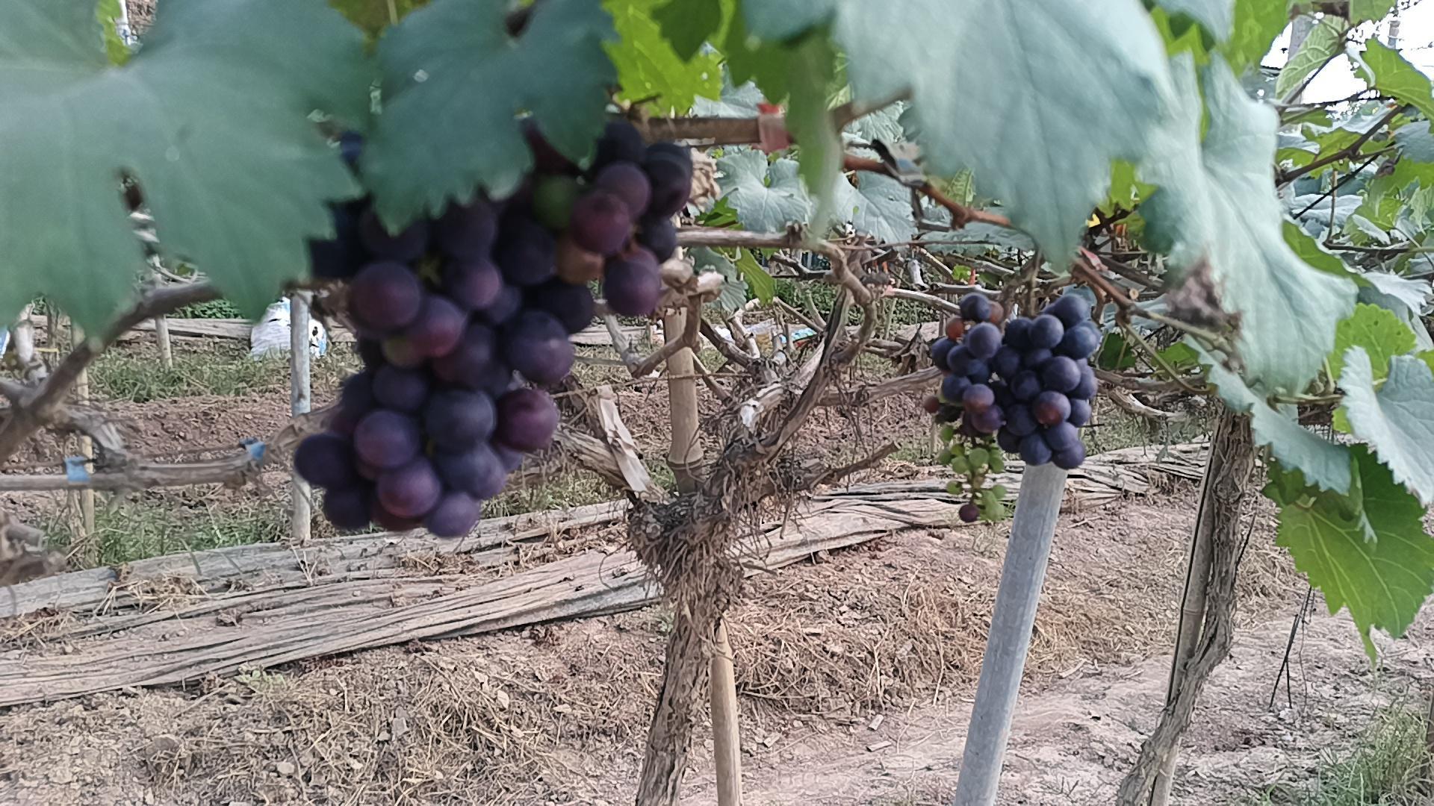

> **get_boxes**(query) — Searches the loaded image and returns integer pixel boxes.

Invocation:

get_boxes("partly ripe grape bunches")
[294,121,693,537]
[940,425,1007,522]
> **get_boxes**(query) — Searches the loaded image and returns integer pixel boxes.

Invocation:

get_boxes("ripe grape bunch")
[922,293,1101,469]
